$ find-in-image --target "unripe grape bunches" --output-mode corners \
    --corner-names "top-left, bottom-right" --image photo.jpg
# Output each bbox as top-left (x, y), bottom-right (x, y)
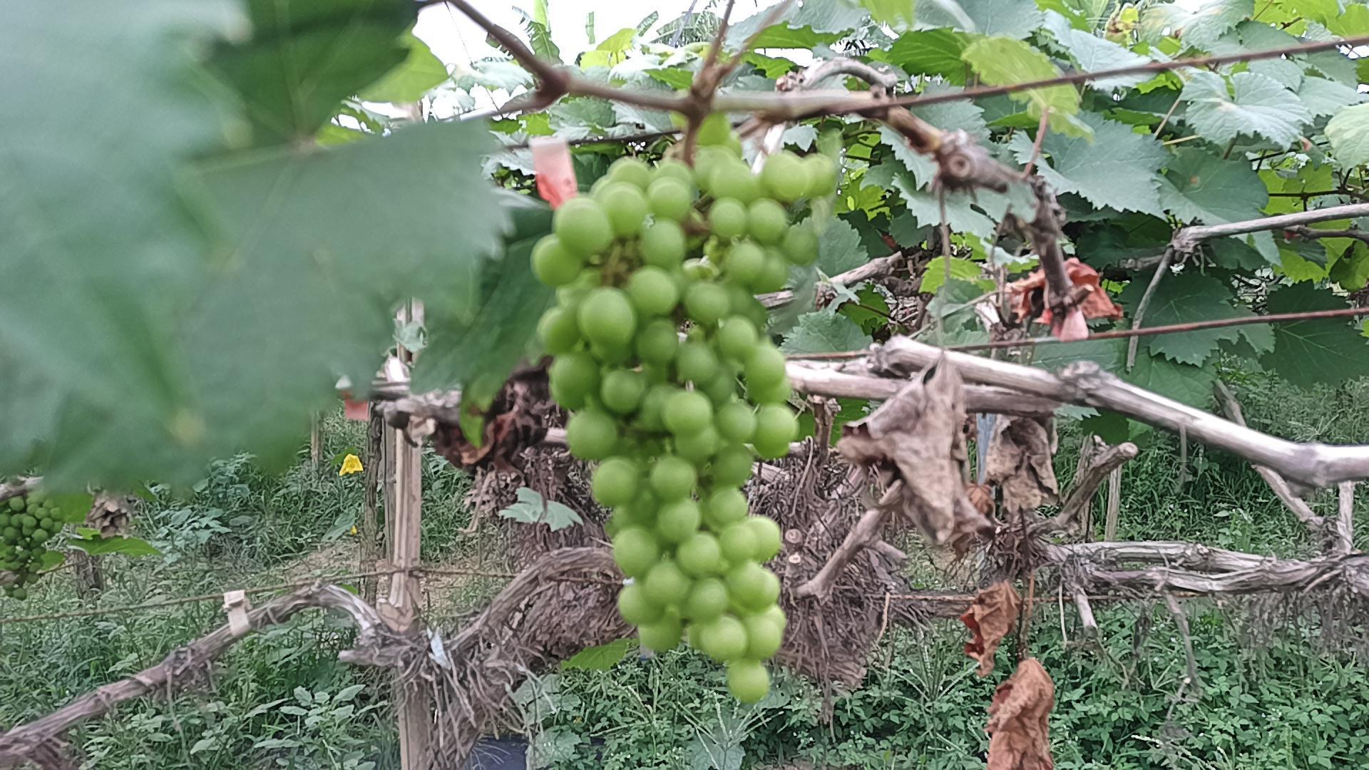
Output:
top-left (530, 145), bottom-right (838, 700)
top-left (0, 491), bottom-right (64, 600)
